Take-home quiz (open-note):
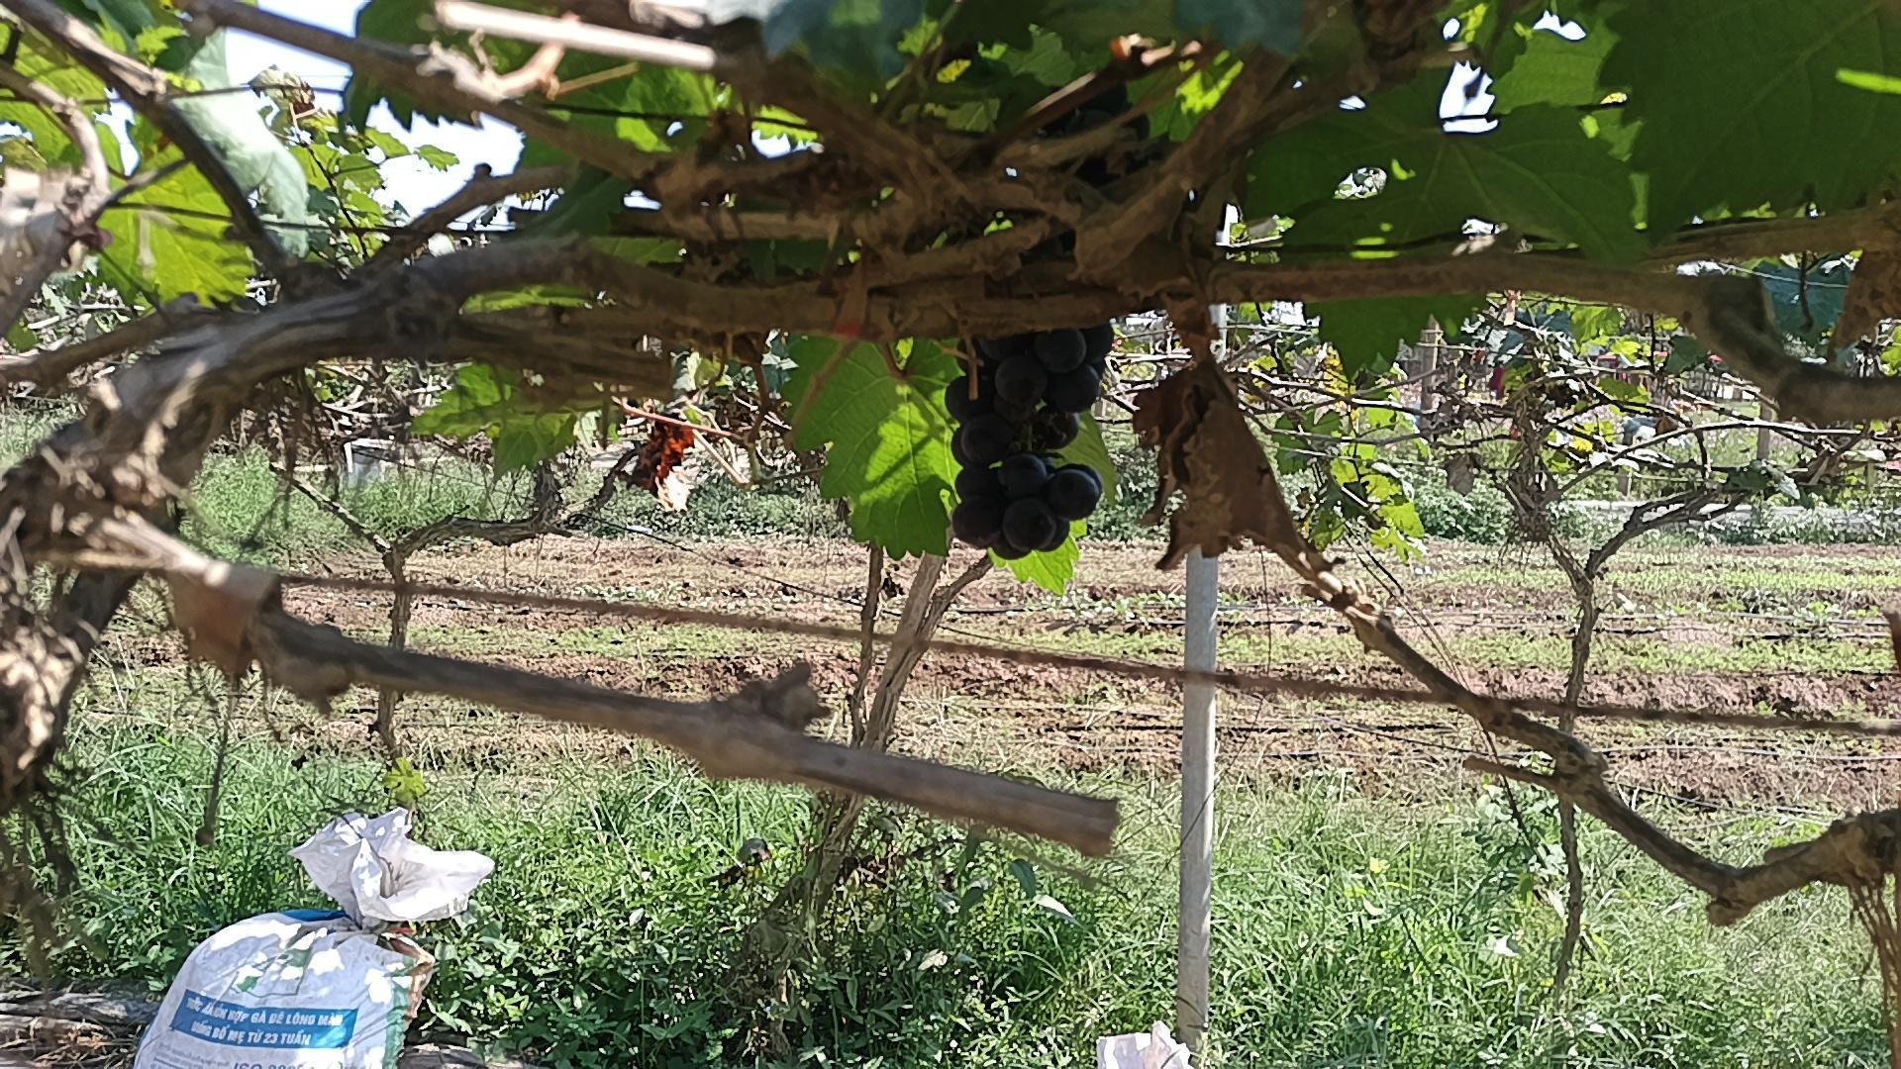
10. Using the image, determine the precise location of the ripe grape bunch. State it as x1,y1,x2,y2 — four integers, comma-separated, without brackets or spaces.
947,85,1170,559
